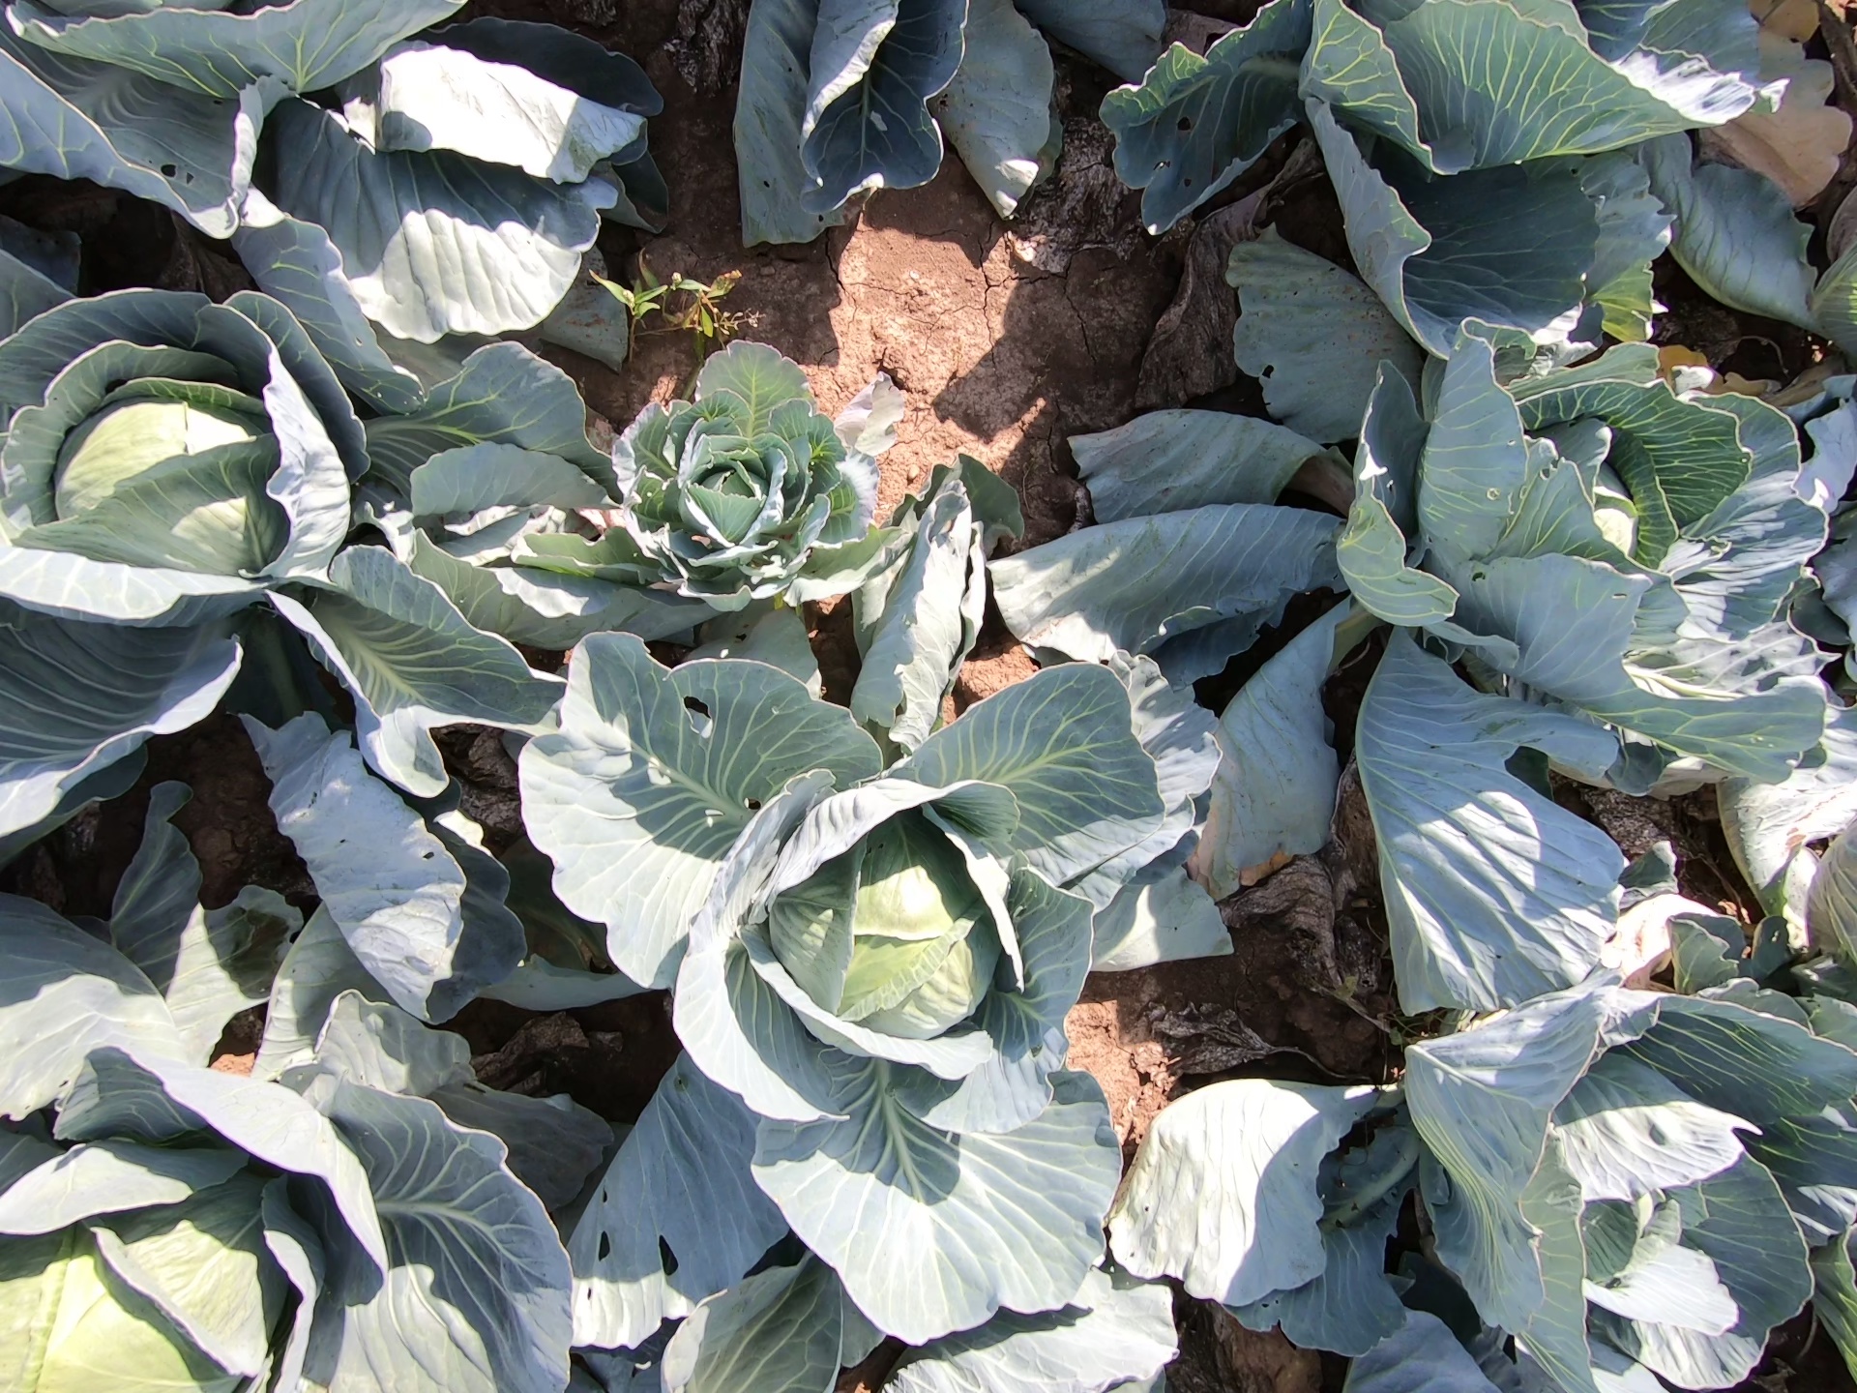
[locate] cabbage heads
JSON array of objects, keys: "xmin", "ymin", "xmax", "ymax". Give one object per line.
[
  {"xmin": 768, "ymin": 789, "xmax": 1008, "ymax": 1045},
  {"xmin": 1492, "ymin": 452, "xmax": 1646, "ymax": 596},
  {"xmin": 695, "ymin": 459, "xmax": 776, "ymax": 541},
  {"xmin": 50, "ymin": 383, "xmax": 302, "ymax": 586},
  {"xmin": 1533, "ymin": 1121, "xmax": 1665, "ymax": 1254},
  {"xmin": 2, "ymin": 1157, "xmax": 302, "ymax": 1390}
]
